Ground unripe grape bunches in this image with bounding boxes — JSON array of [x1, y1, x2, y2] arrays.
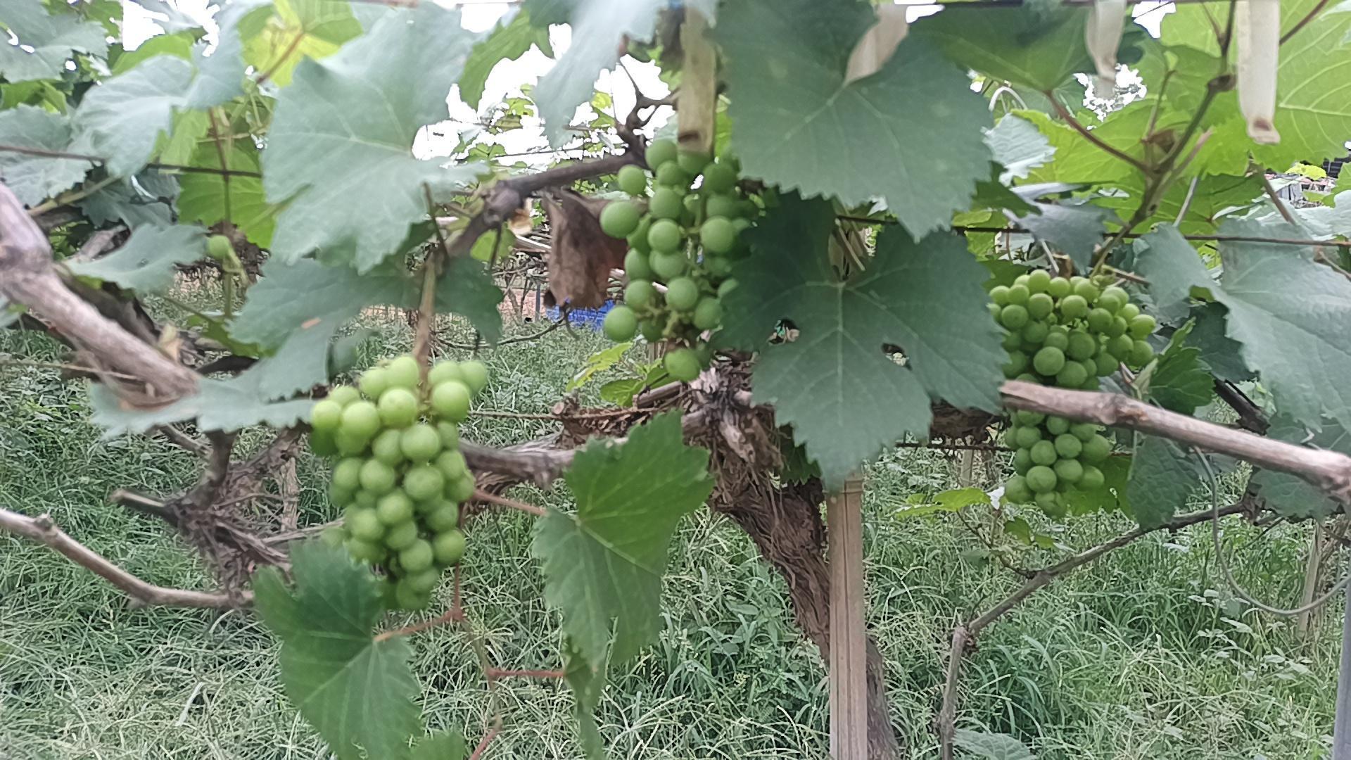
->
[[600, 140, 765, 381], [310, 355, 487, 609], [205, 234, 246, 279], [989, 270, 1155, 519]]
